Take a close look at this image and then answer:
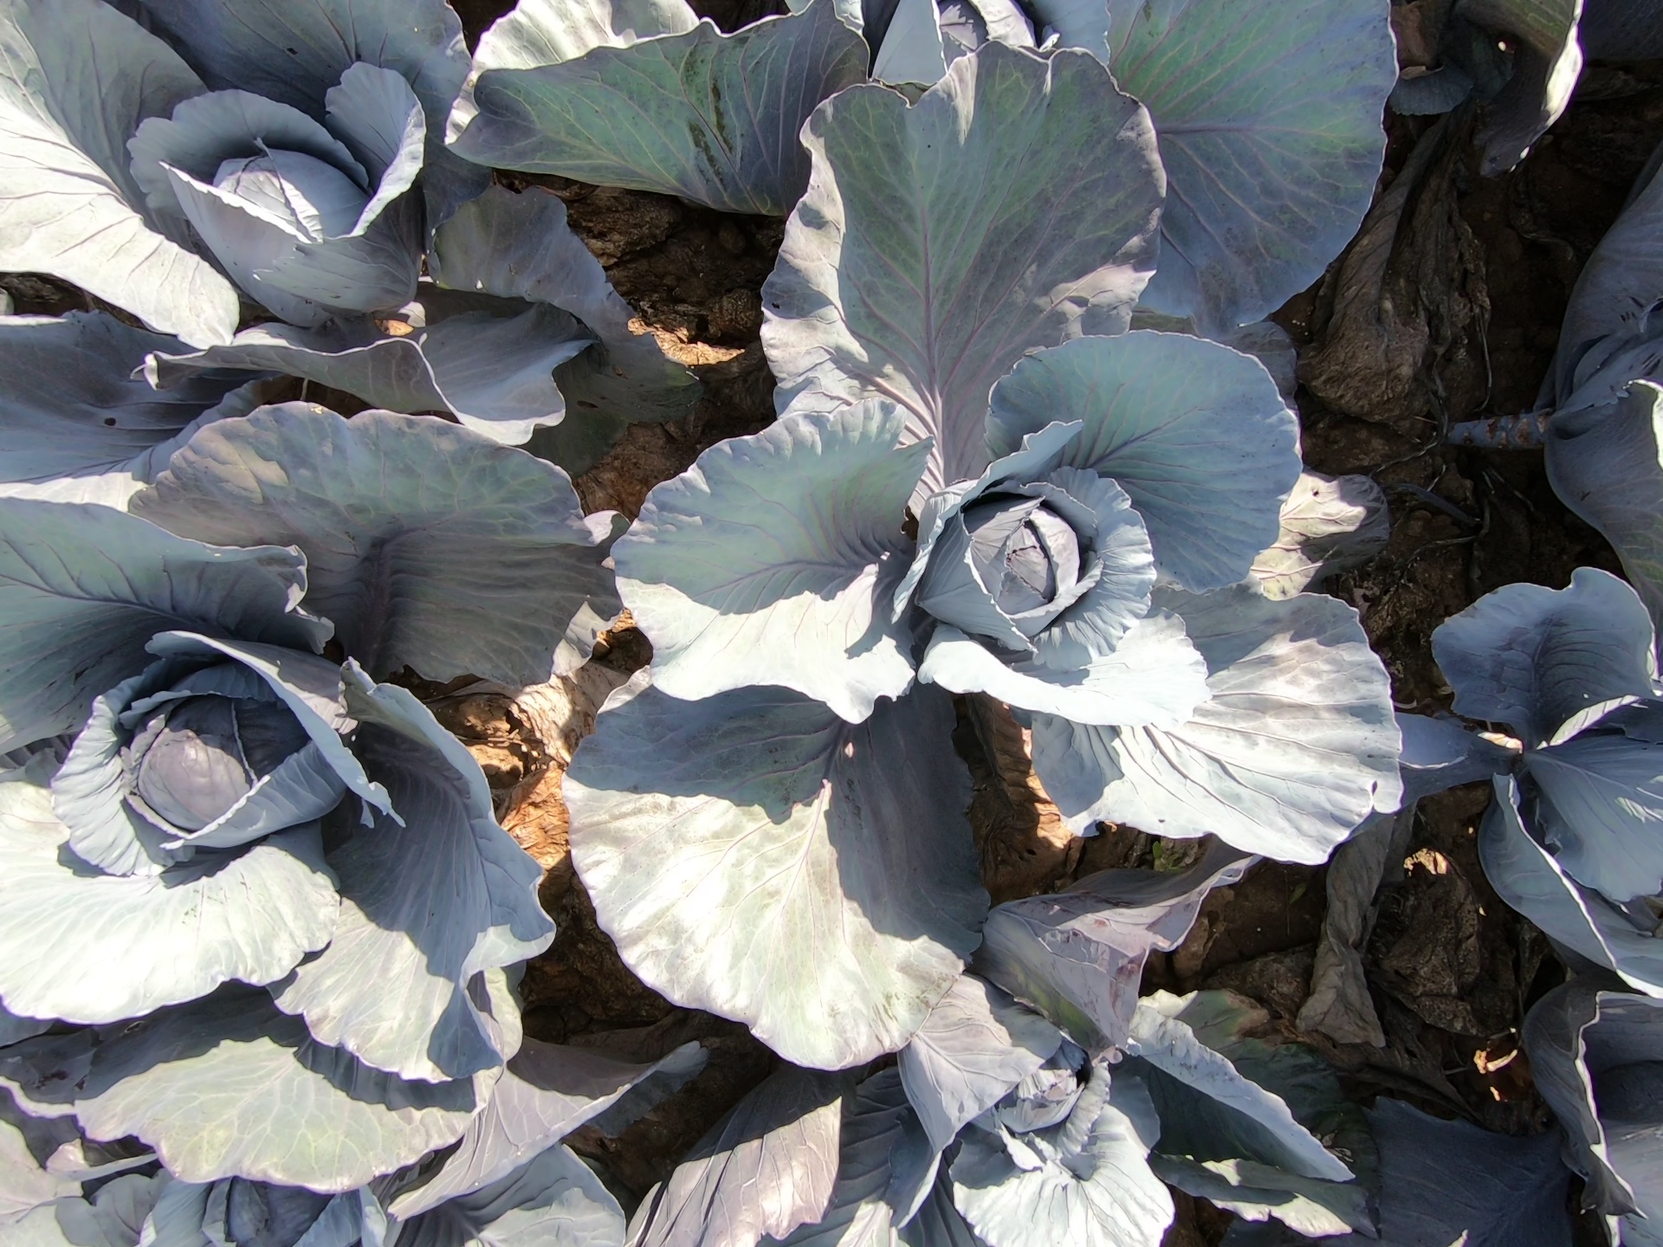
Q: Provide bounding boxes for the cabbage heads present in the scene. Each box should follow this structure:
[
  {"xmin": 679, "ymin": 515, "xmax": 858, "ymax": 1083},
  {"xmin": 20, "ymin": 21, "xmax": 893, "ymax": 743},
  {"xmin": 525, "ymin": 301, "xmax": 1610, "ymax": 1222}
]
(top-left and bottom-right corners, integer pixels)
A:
[
  {"xmin": 948, "ymin": 1027, "xmax": 1084, "ymax": 1130},
  {"xmin": 133, "ymin": 672, "xmax": 349, "ymax": 829},
  {"xmin": 1574, "ymin": 740, "xmax": 1661, "ymax": 906},
  {"xmin": 877, "ymin": 6, "xmax": 1043, "ymax": 165},
  {"xmin": 214, "ymin": 152, "xmax": 379, "ymax": 299},
  {"xmin": 935, "ymin": 503, "xmax": 1083, "ymax": 634},
  {"xmin": 204, "ymin": 1123, "xmax": 360, "ymax": 1244}
]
